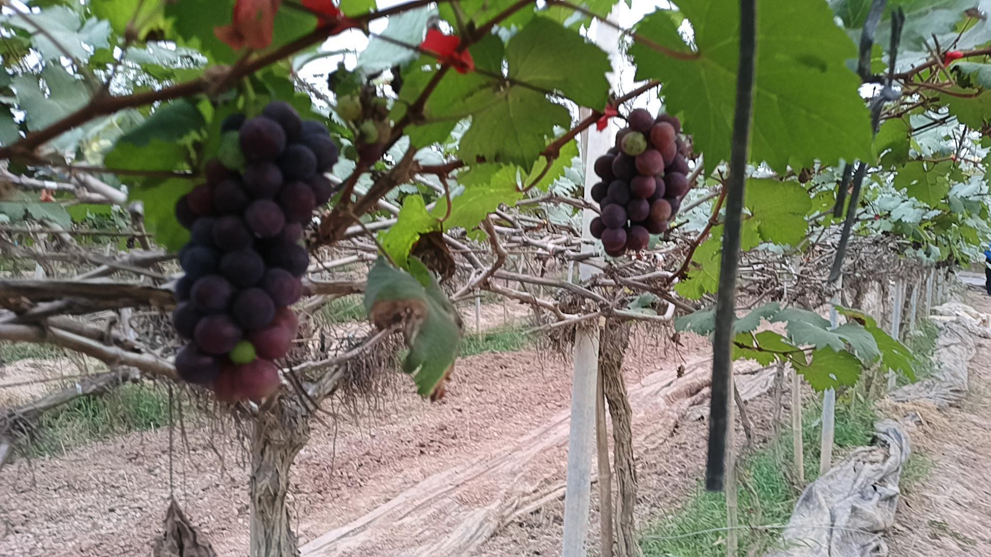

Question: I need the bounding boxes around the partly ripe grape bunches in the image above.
[173,102,338,402]
[589,108,691,256]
